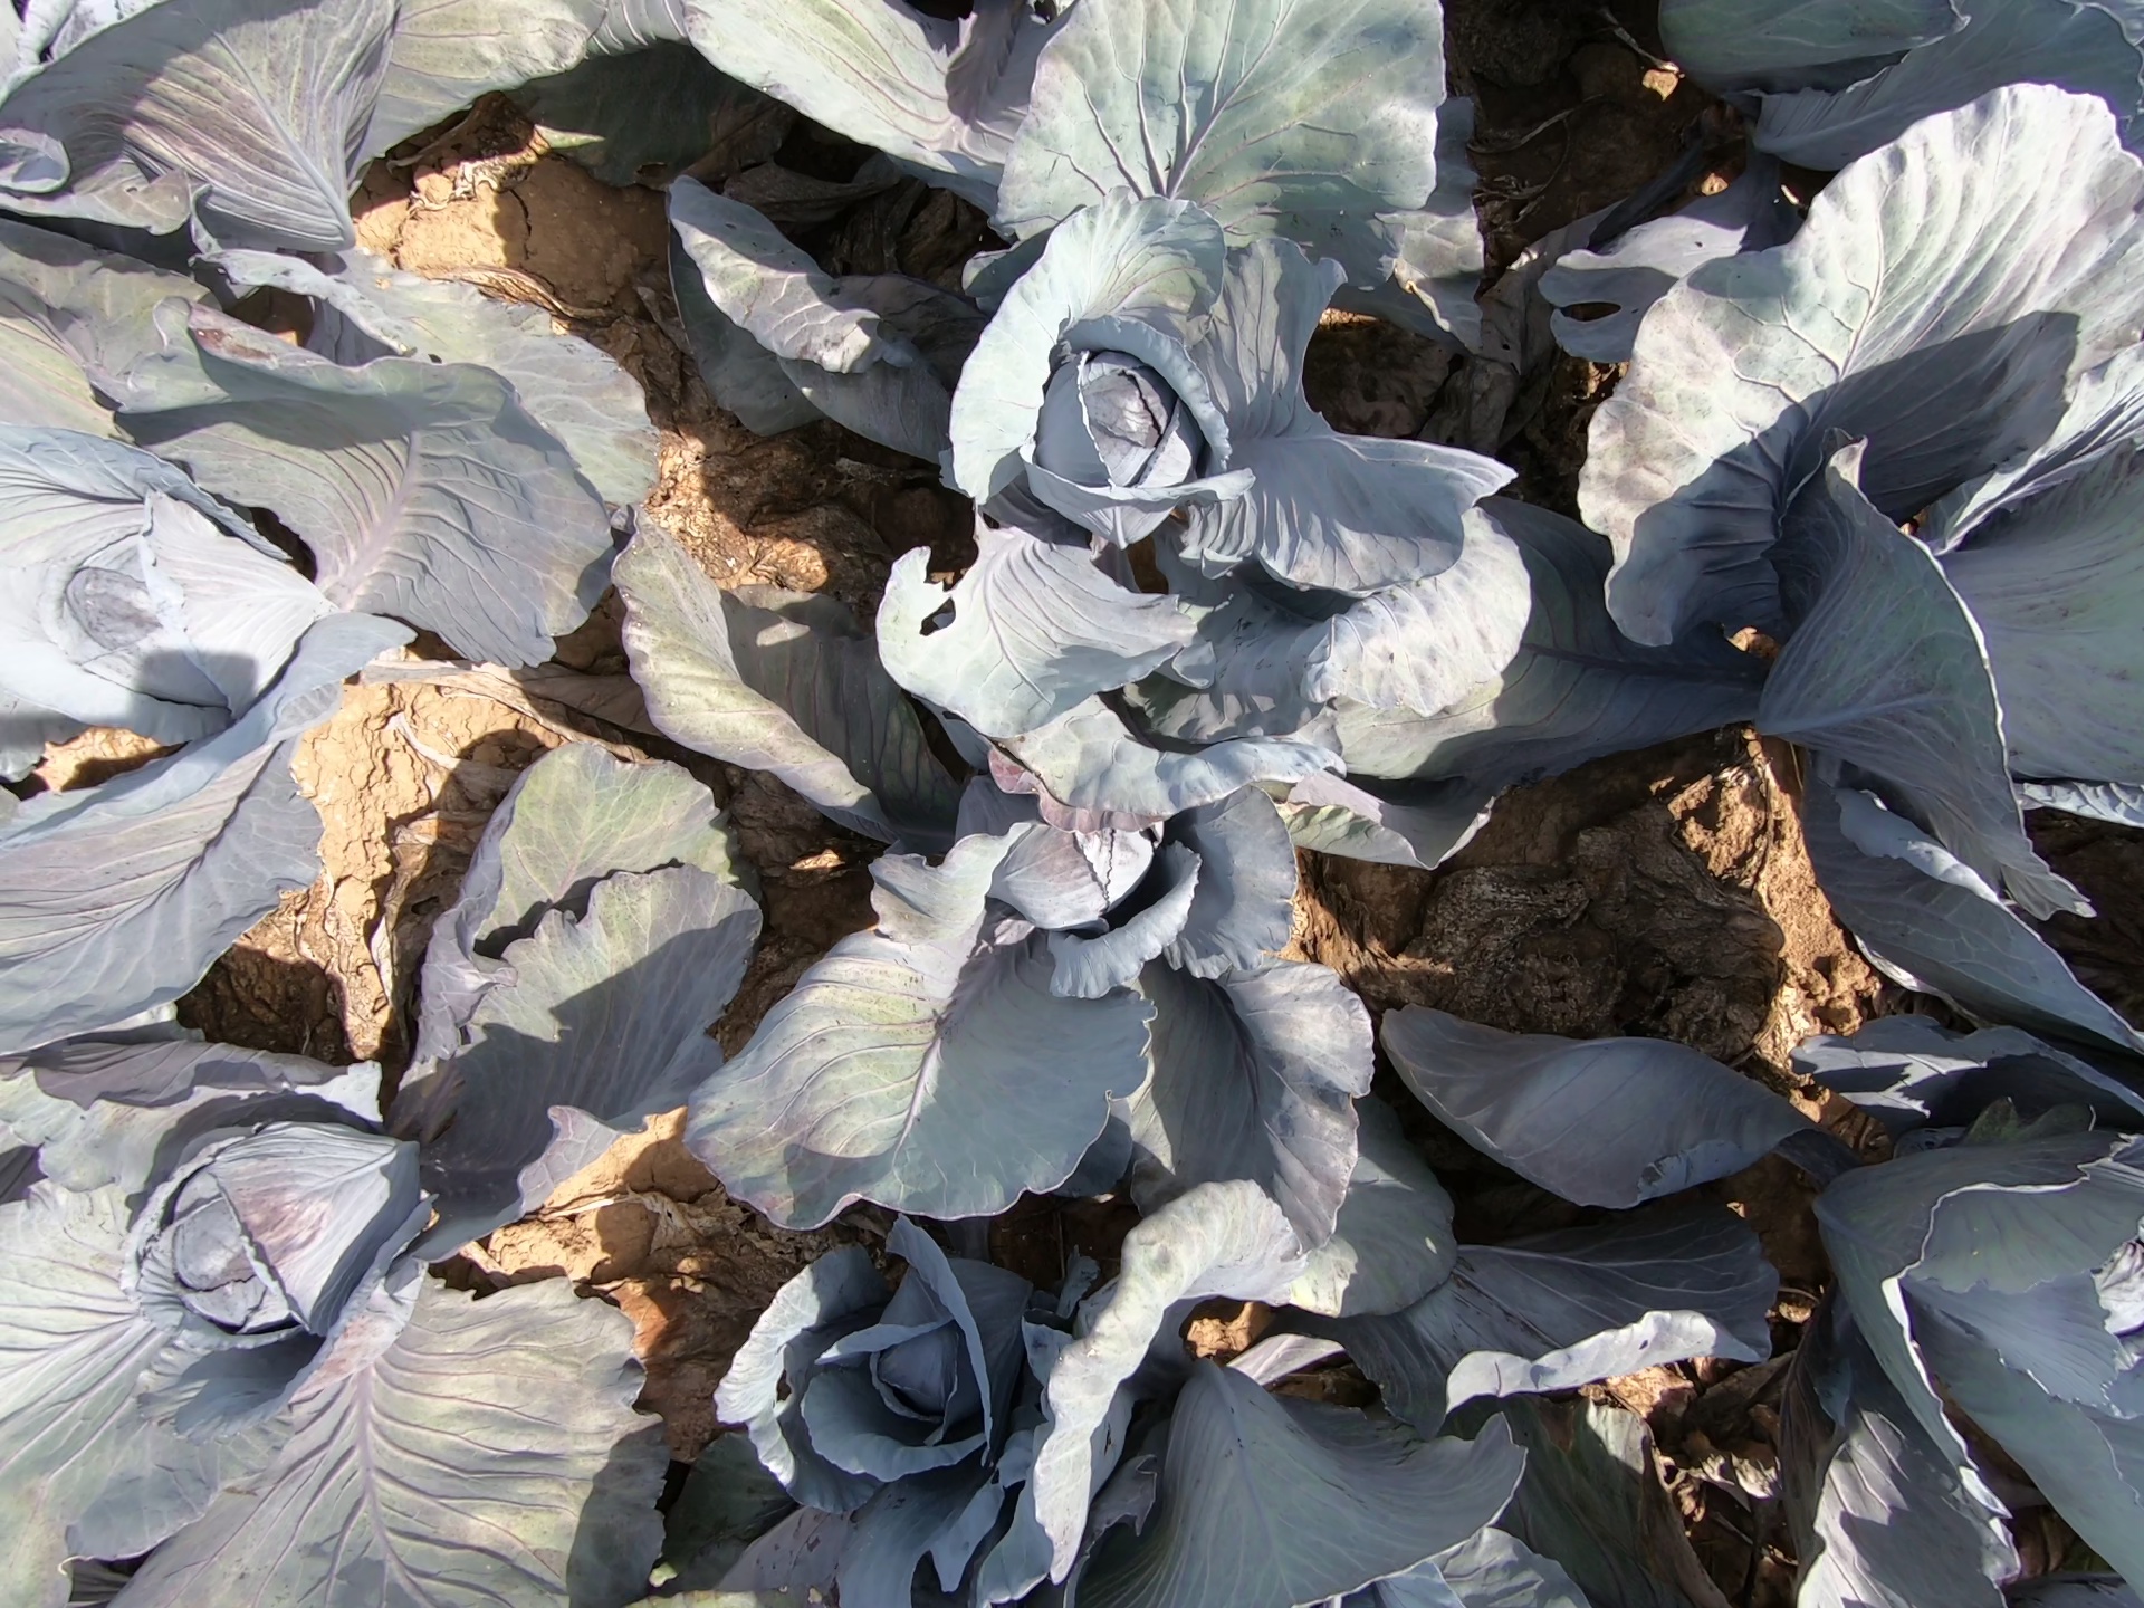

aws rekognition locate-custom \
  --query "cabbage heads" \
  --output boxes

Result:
[993,772,1156,931]
[1962,1190,2141,1341]
[50,0,258,145]
[169,1140,380,1330]
[880,1269,1008,1408]
[1038,352,1198,521]
[51,530,285,697]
